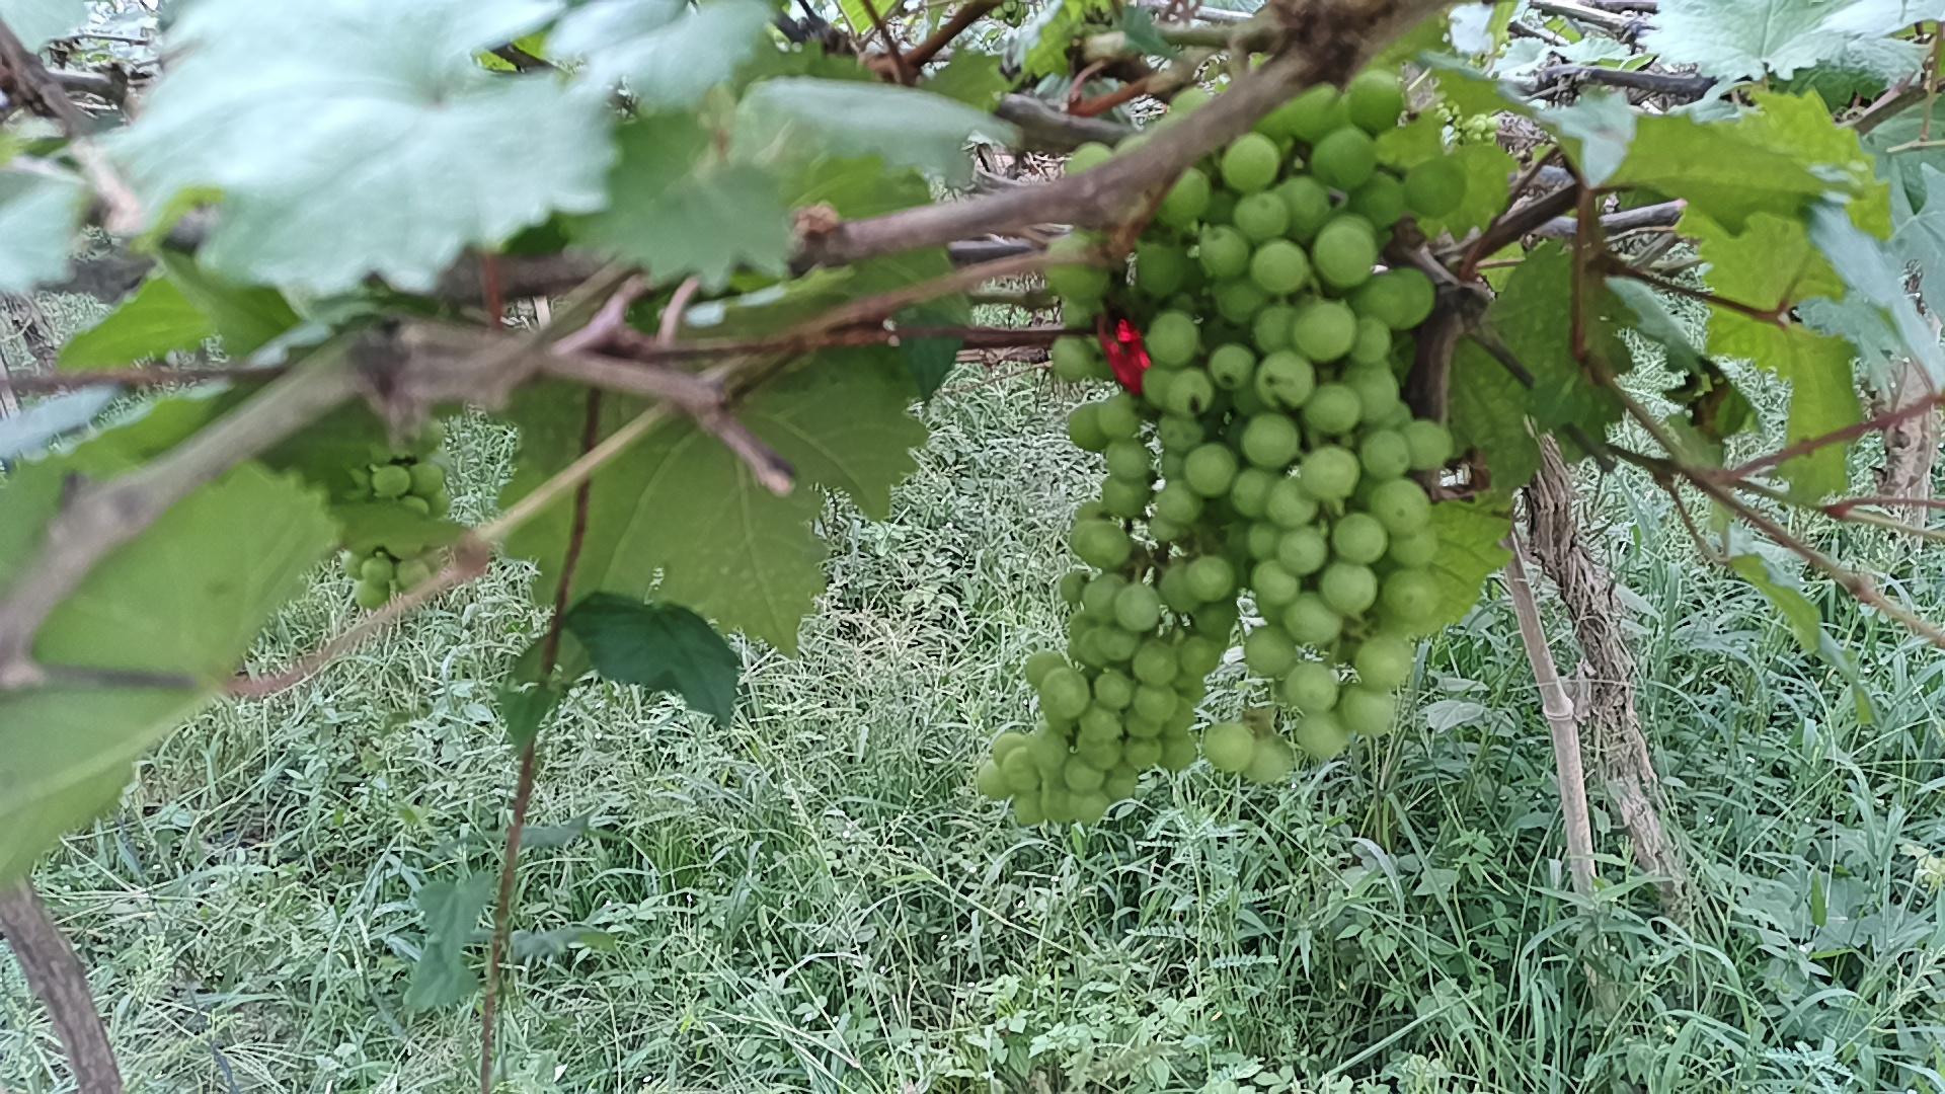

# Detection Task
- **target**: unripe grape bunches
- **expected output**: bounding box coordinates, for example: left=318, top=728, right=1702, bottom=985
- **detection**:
left=1192, top=62, right=1482, bottom=792
left=1166, top=75, right=1236, bottom=118
left=969, top=166, right=1242, bottom=839
left=1062, top=125, right=1146, bottom=176
left=337, top=542, right=449, bottom=615
left=334, top=412, right=460, bottom=523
